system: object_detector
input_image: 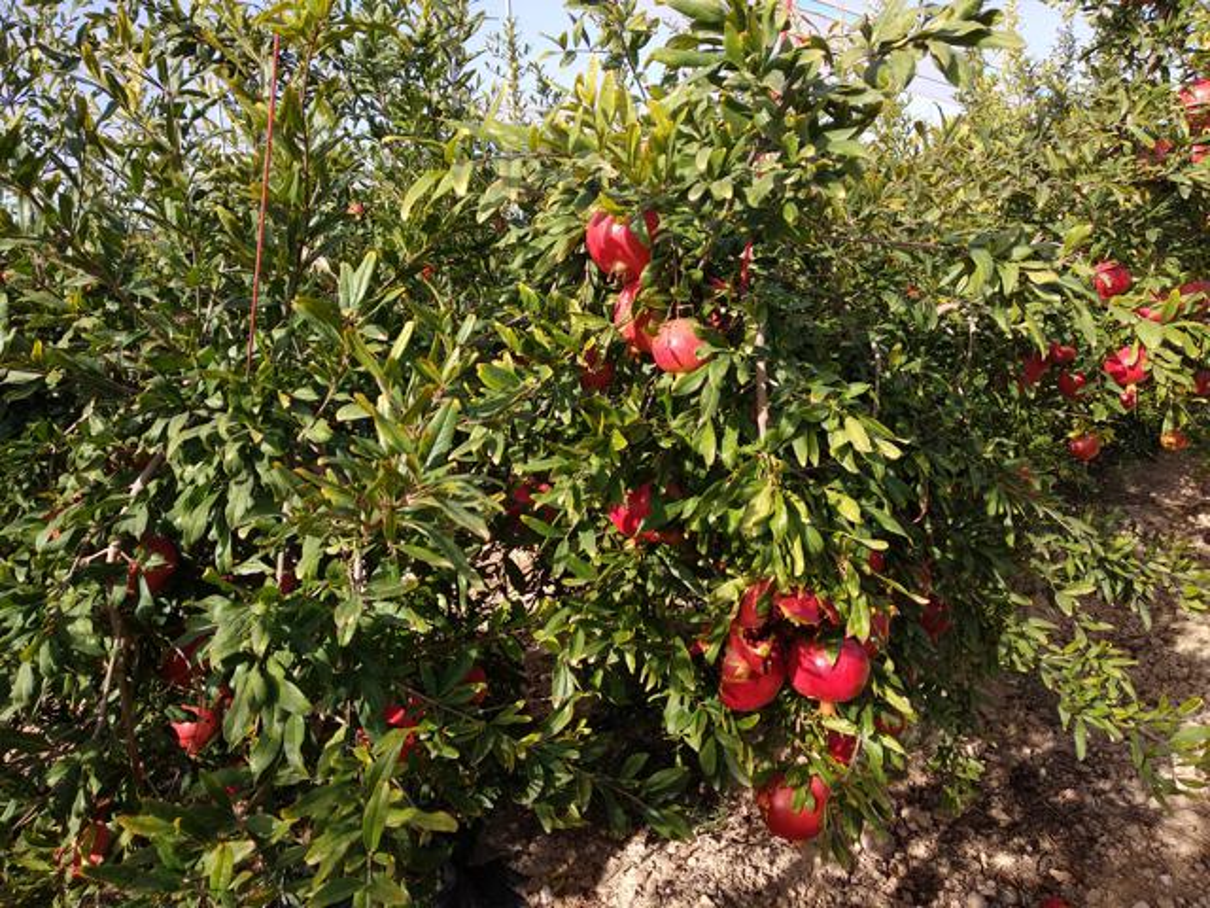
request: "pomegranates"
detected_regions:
[734,579,839,639]
[917,598,951,645]
[465,668,490,706]
[127,537,178,598]
[1178,78,1210,134]
[860,613,890,660]
[873,717,904,740]
[580,346,613,392]
[586,210,660,286]
[613,280,656,358]
[1189,144,1210,163]
[509,480,558,522]
[1180,282,1210,295]
[1102,344,1151,393]
[688,622,788,713]
[1093,261,1132,299]
[650,318,705,375]
[1134,306,1163,322]
[826,730,856,764]
[1059,369,1087,397]
[1161,429,1191,452]
[786,634,870,719]
[605,480,683,545]
[168,706,217,759]
[754,772,830,842]
[354,696,423,759]
[1191,369,1210,395]
[72,817,110,880]
[1140,138,1176,163]
[1019,354,1046,392]
[1066,433,1102,462]
[870,550,887,573]
[159,636,206,687]
[1049,342,1078,367]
